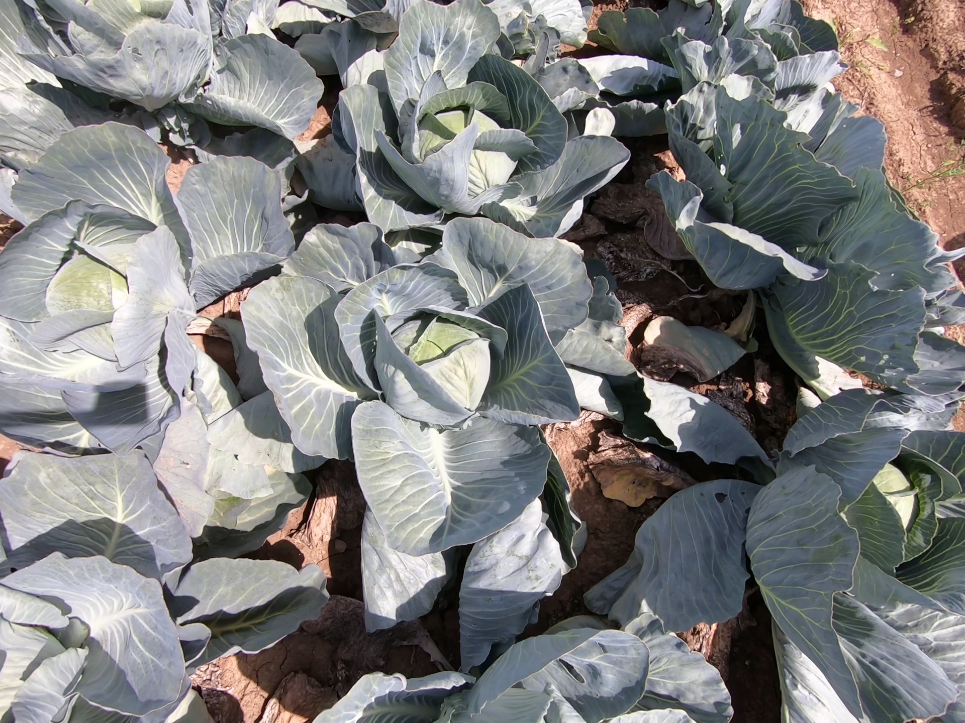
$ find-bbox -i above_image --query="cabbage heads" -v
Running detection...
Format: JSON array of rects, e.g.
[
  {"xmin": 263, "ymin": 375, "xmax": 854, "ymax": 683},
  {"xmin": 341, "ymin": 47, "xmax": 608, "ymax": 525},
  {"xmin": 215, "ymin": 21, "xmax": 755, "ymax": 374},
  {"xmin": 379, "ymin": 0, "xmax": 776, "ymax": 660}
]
[
  {"xmin": 822, "ymin": 459, "xmax": 920, "ymax": 552},
  {"xmin": 75, "ymin": 0, "xmax": 196, "ymax": 91},
  {"xmin": 439, "ymin": 688, "xmax": 560, "ymax": 722},
  {"xmin": 44, "ymin": 248, "xmax": 168, "ymax": 348},
  {"xmin": 379, "ymin": 317, "xmax": 489, "ymax": 416},
  {"xmin": 413, "ymin": 106, "xmax": 508, "ymax": 197},
  {"xmin": 0, "ymin": 607, "xmax": 71, "ymax": 722}
]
